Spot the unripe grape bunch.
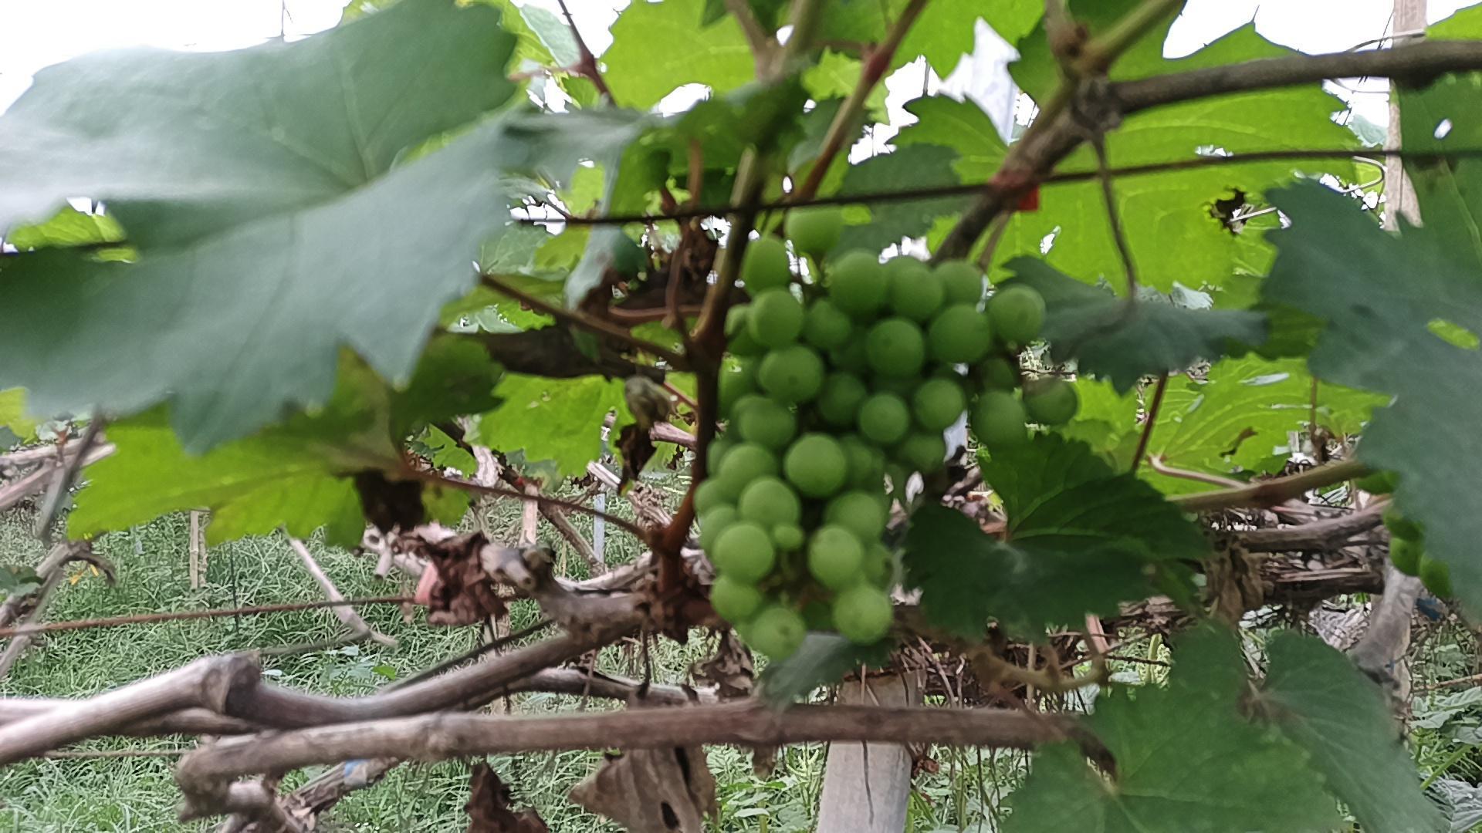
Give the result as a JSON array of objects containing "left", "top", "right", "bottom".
[{"left": 692, "top": 208, "right": 1078, "bottom": 657}]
